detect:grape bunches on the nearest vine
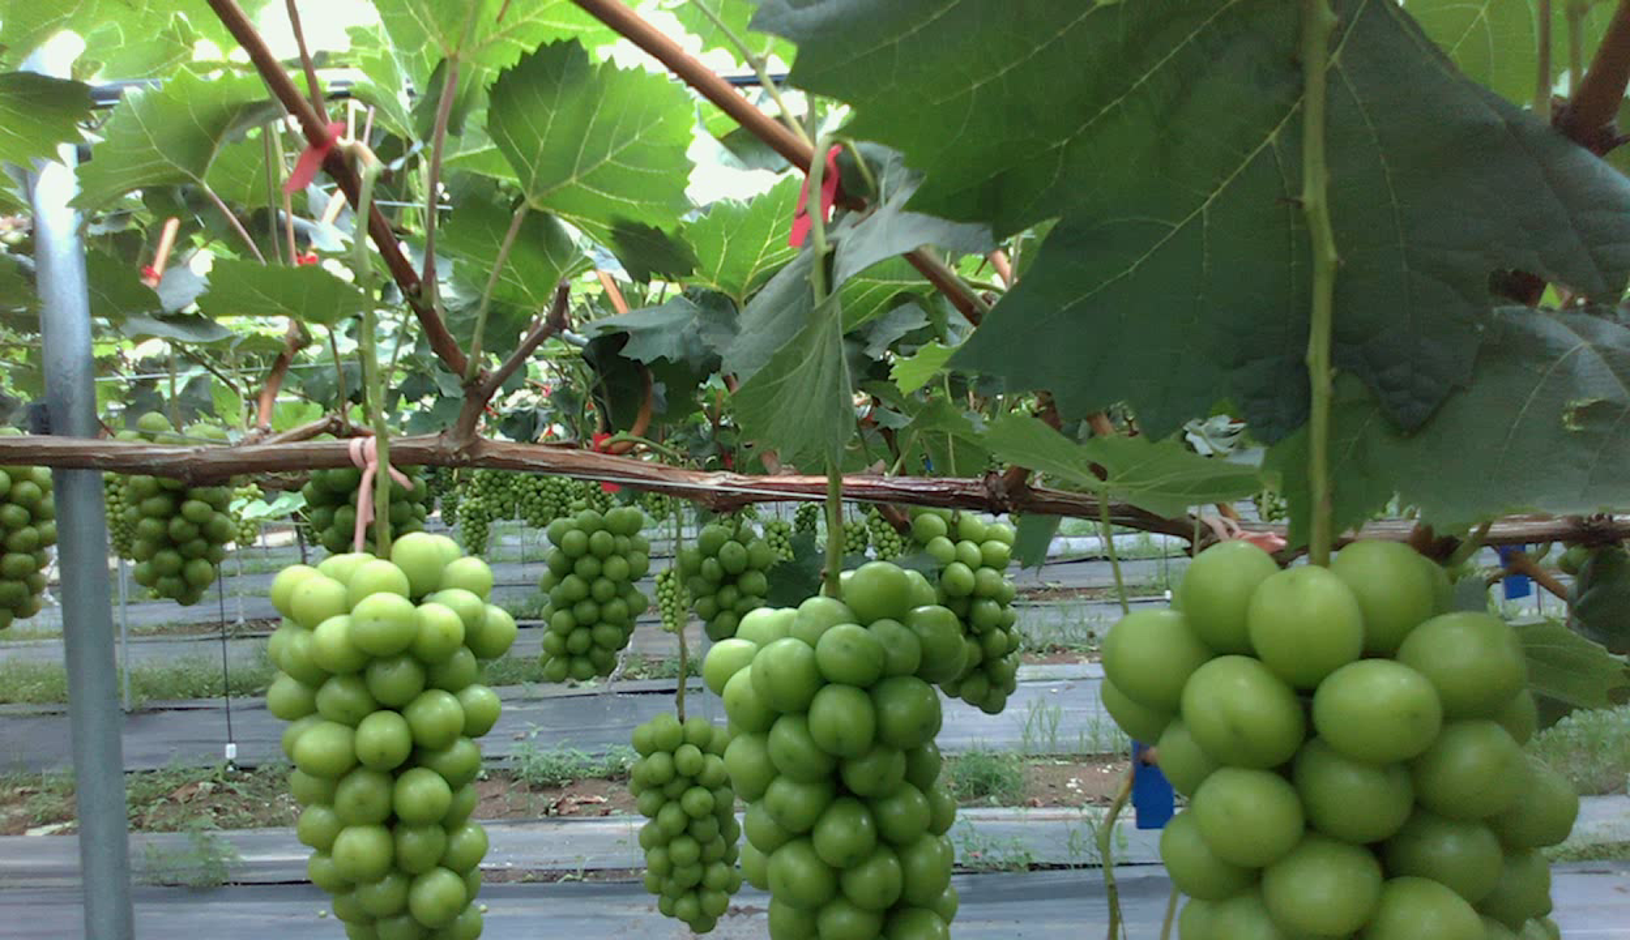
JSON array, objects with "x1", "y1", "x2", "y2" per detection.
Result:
[
  {"x1": 265, "y1": 533, "x2": 516, "y2": 939},
  {"x1": 1098, "y1": 539, "x2": 1578, "y2": 939},
  {"x1": 703, "y1": 561, "x2": 967, "y2": 939}
]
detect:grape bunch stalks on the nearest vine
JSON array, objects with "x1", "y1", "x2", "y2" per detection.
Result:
[
  {"x1": 344, "y1": 140, "x2": 391, "y2": 560},
  {"x1": 806, "y1": 134, "x2": 879, "y2": 598},
  {"x1": 1302, "y1": 1, "x2": 1334, "y2": 568}
]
